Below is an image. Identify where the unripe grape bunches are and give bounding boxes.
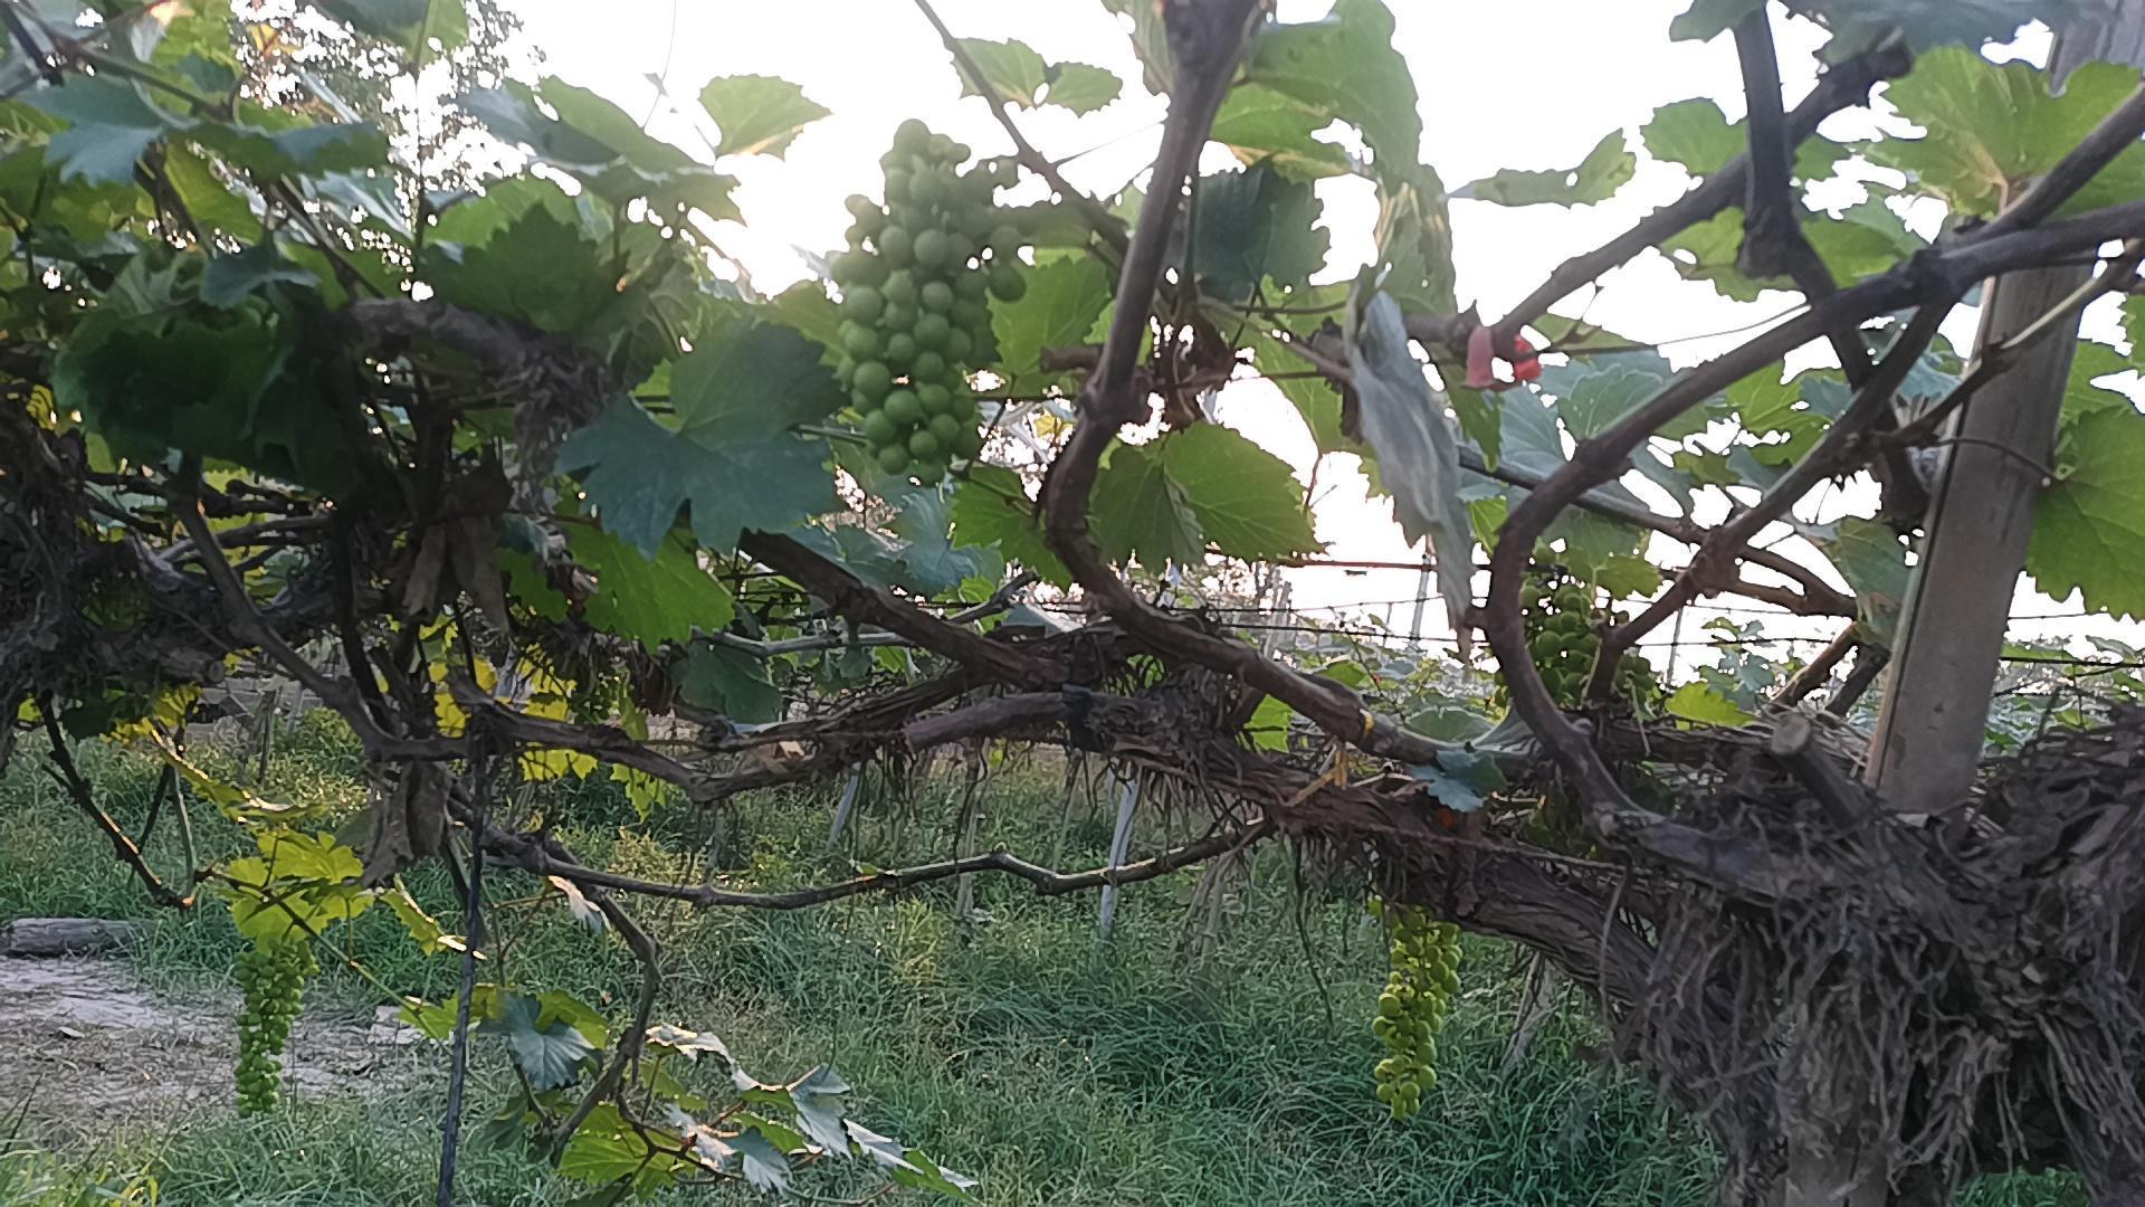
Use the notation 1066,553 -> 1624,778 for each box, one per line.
831,122 -> 1022,484
1369,899 -> 1459,1120
1520,545 -> 1599,710
235,938 -> 313,1116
